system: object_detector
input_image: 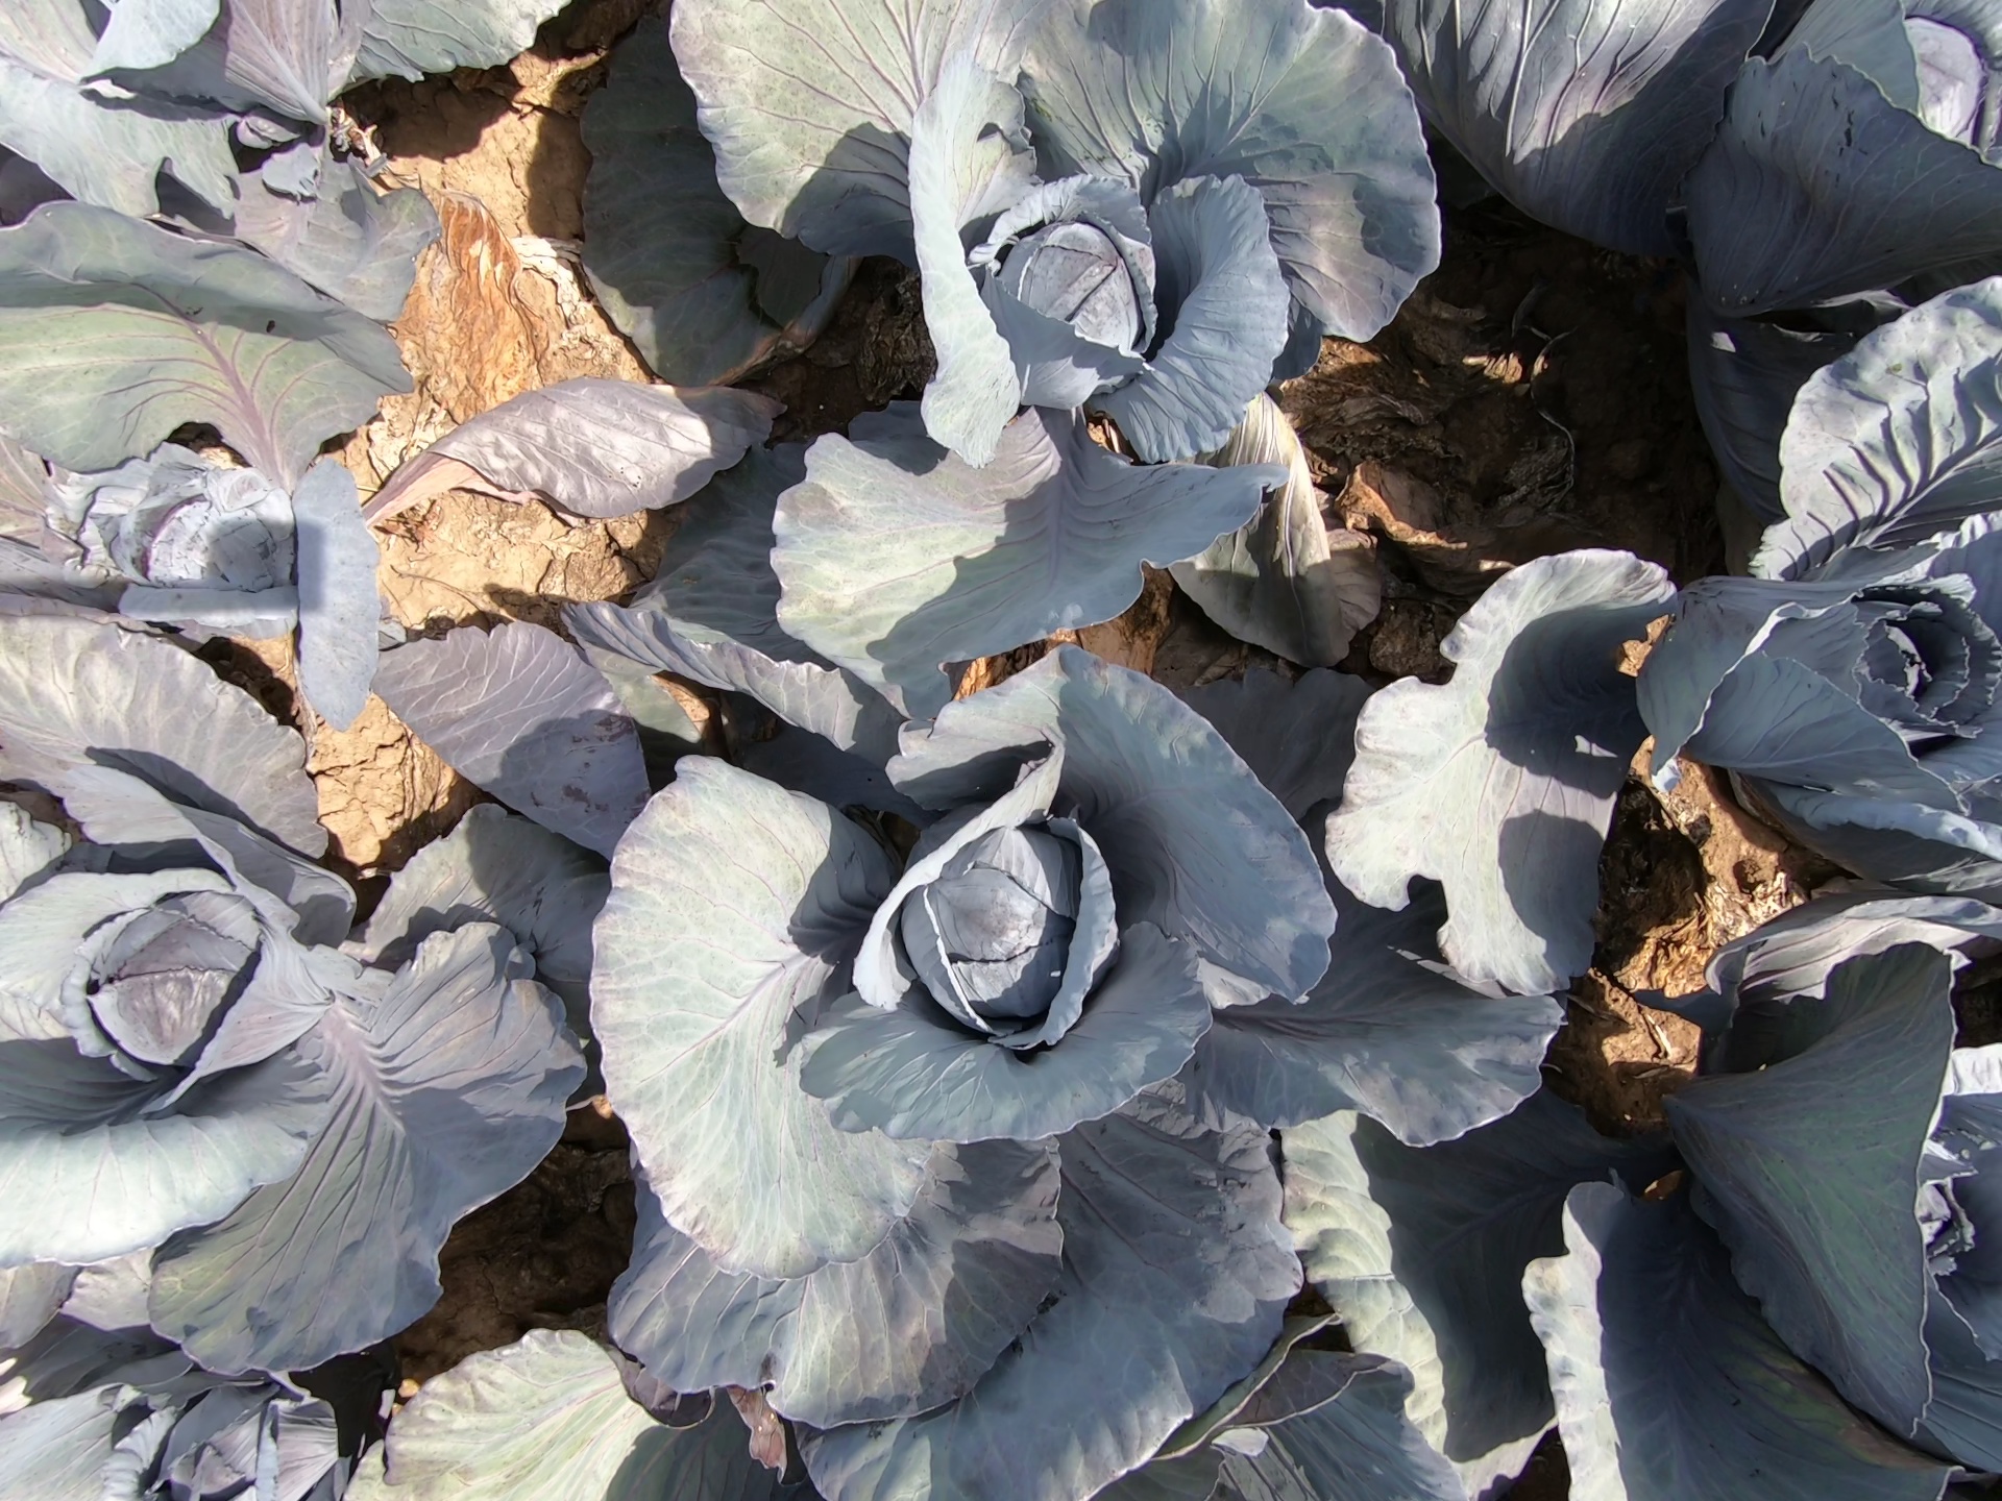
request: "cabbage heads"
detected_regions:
[901,819,1099,1023]
[93,905,304,1069]
[1801,1117,1963,1272]
[993,219,1149,398]
[112,475,280,607]
[1803,13,1992,228]
[162,1379,338,1498]
[1773,611,1923,719]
